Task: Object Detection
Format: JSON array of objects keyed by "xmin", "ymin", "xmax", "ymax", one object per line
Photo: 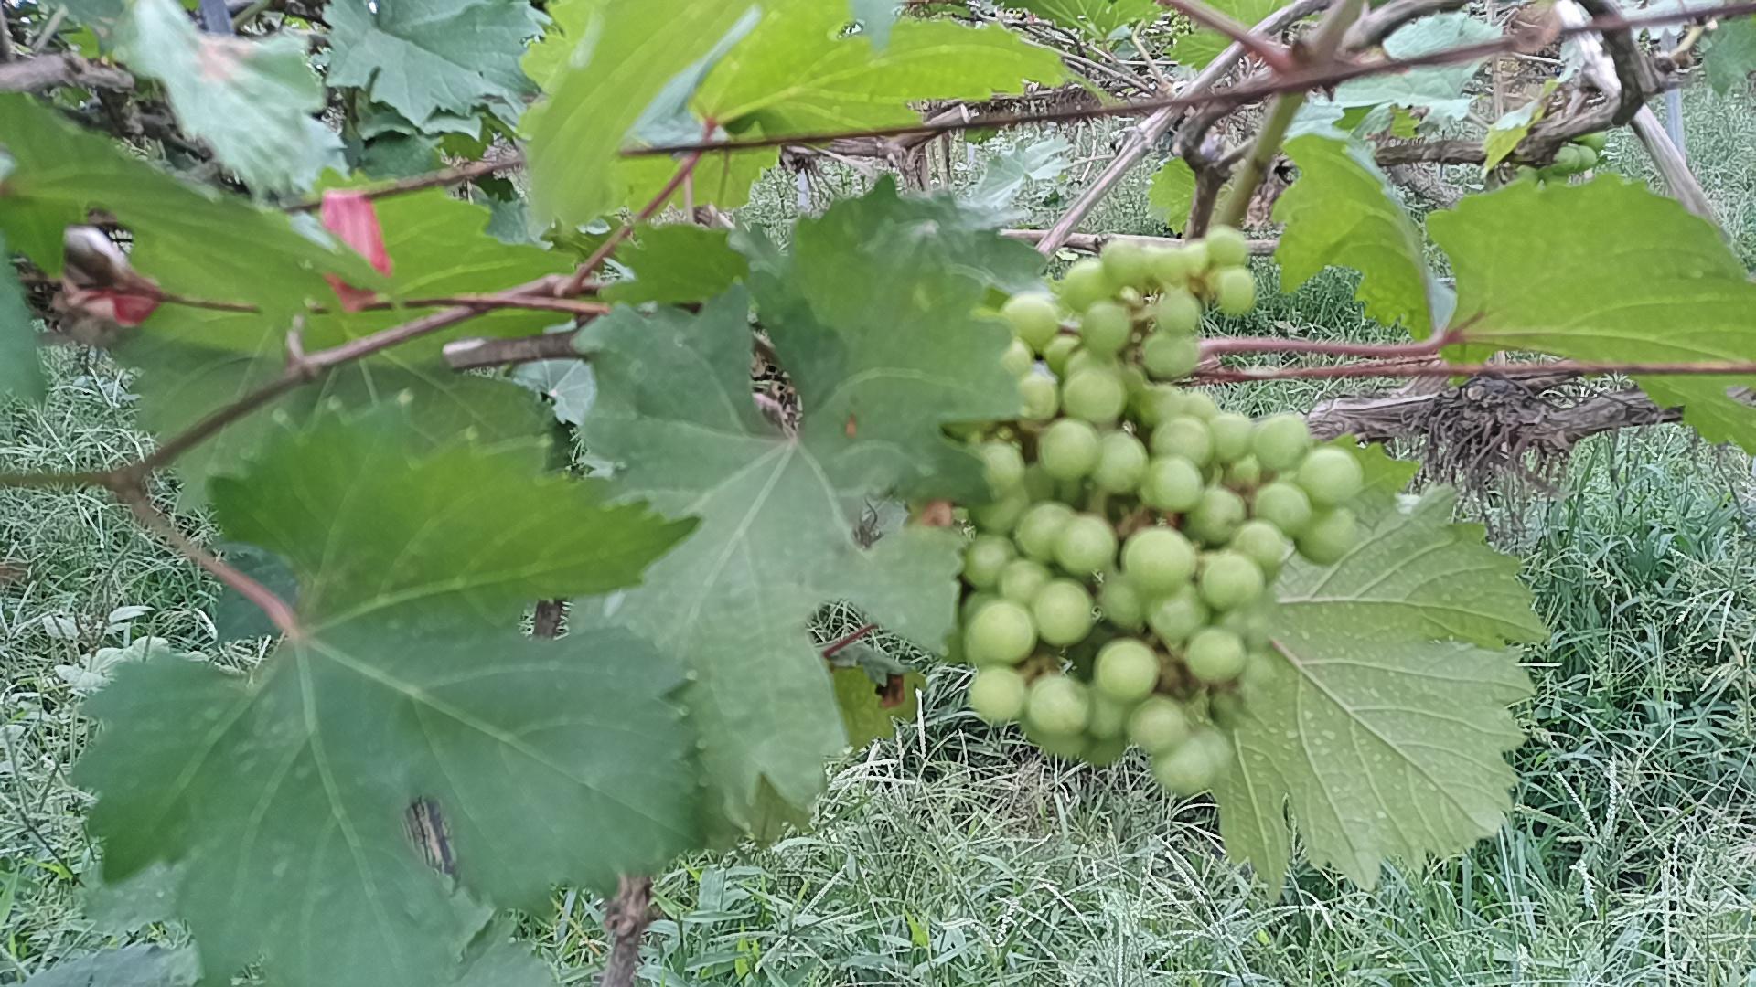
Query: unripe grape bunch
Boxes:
[{"xmin": 959, "ymin": 229, "xmax": 1363, "ymax": 796}]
